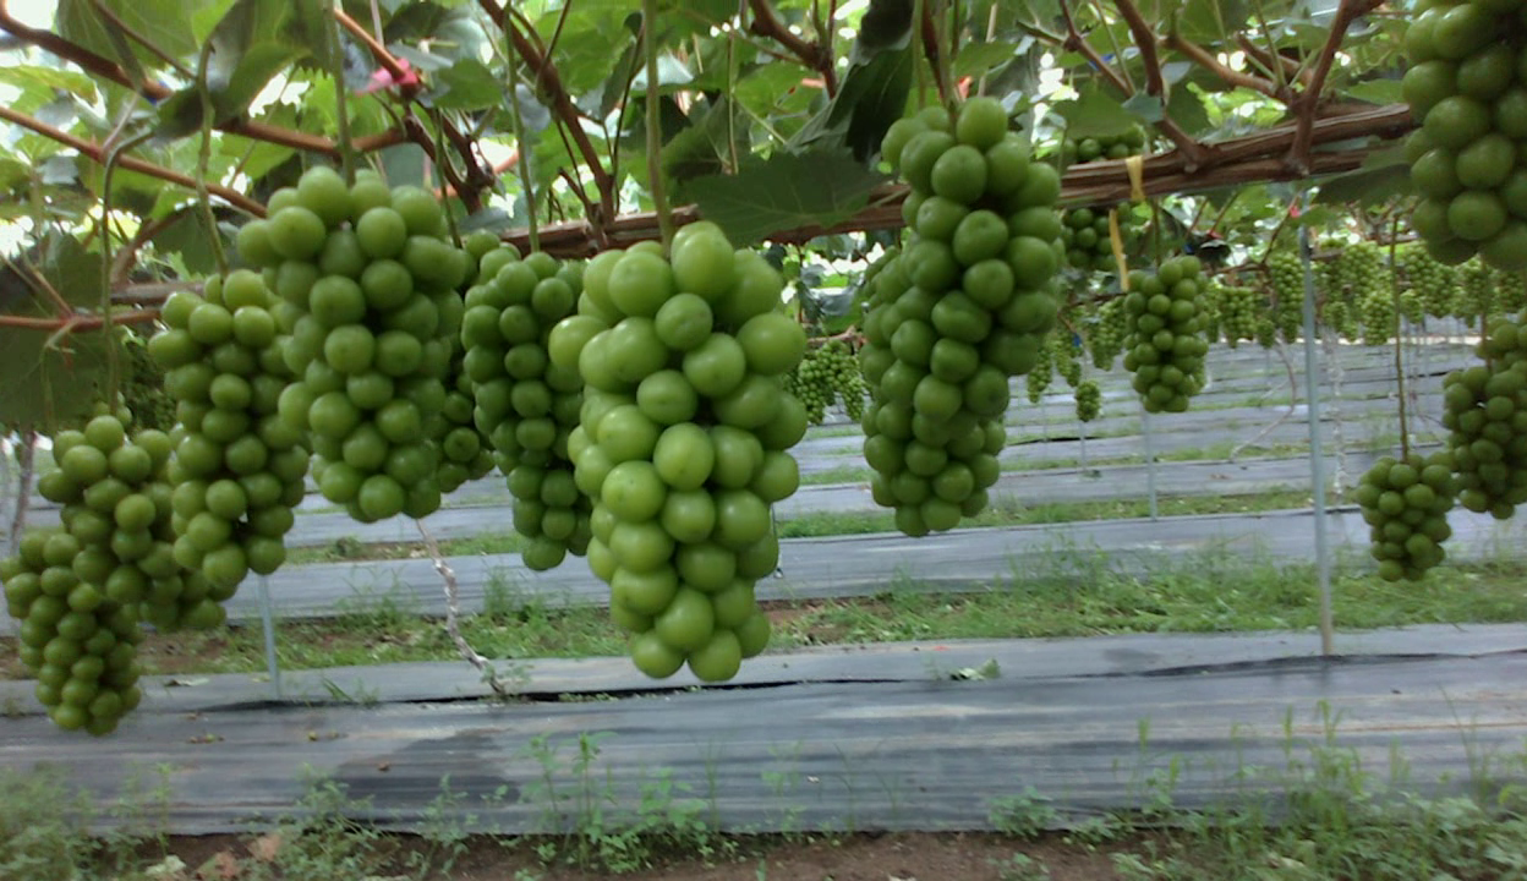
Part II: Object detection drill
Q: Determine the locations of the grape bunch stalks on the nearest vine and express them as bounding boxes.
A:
[102,133,150,416]
[938,1,958,117]
[196,33,226,283]
[505,1,538,251]
[434,109,461,243]
[322,1,354,182]
[909,1,925,106]
[35,329,65,432]
[641,1,674,256]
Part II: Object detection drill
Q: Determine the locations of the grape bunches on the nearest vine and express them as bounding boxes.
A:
[861,396,1005,540]
[148,272,312,587]
[1400,0,1526,266]
[236,168,471,522]
[436,229,521,497]
[33,416,237,630]
[858,93,1064,433]
[463,250,591,570]
[546,220,806,683]
[1,527,146,735]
